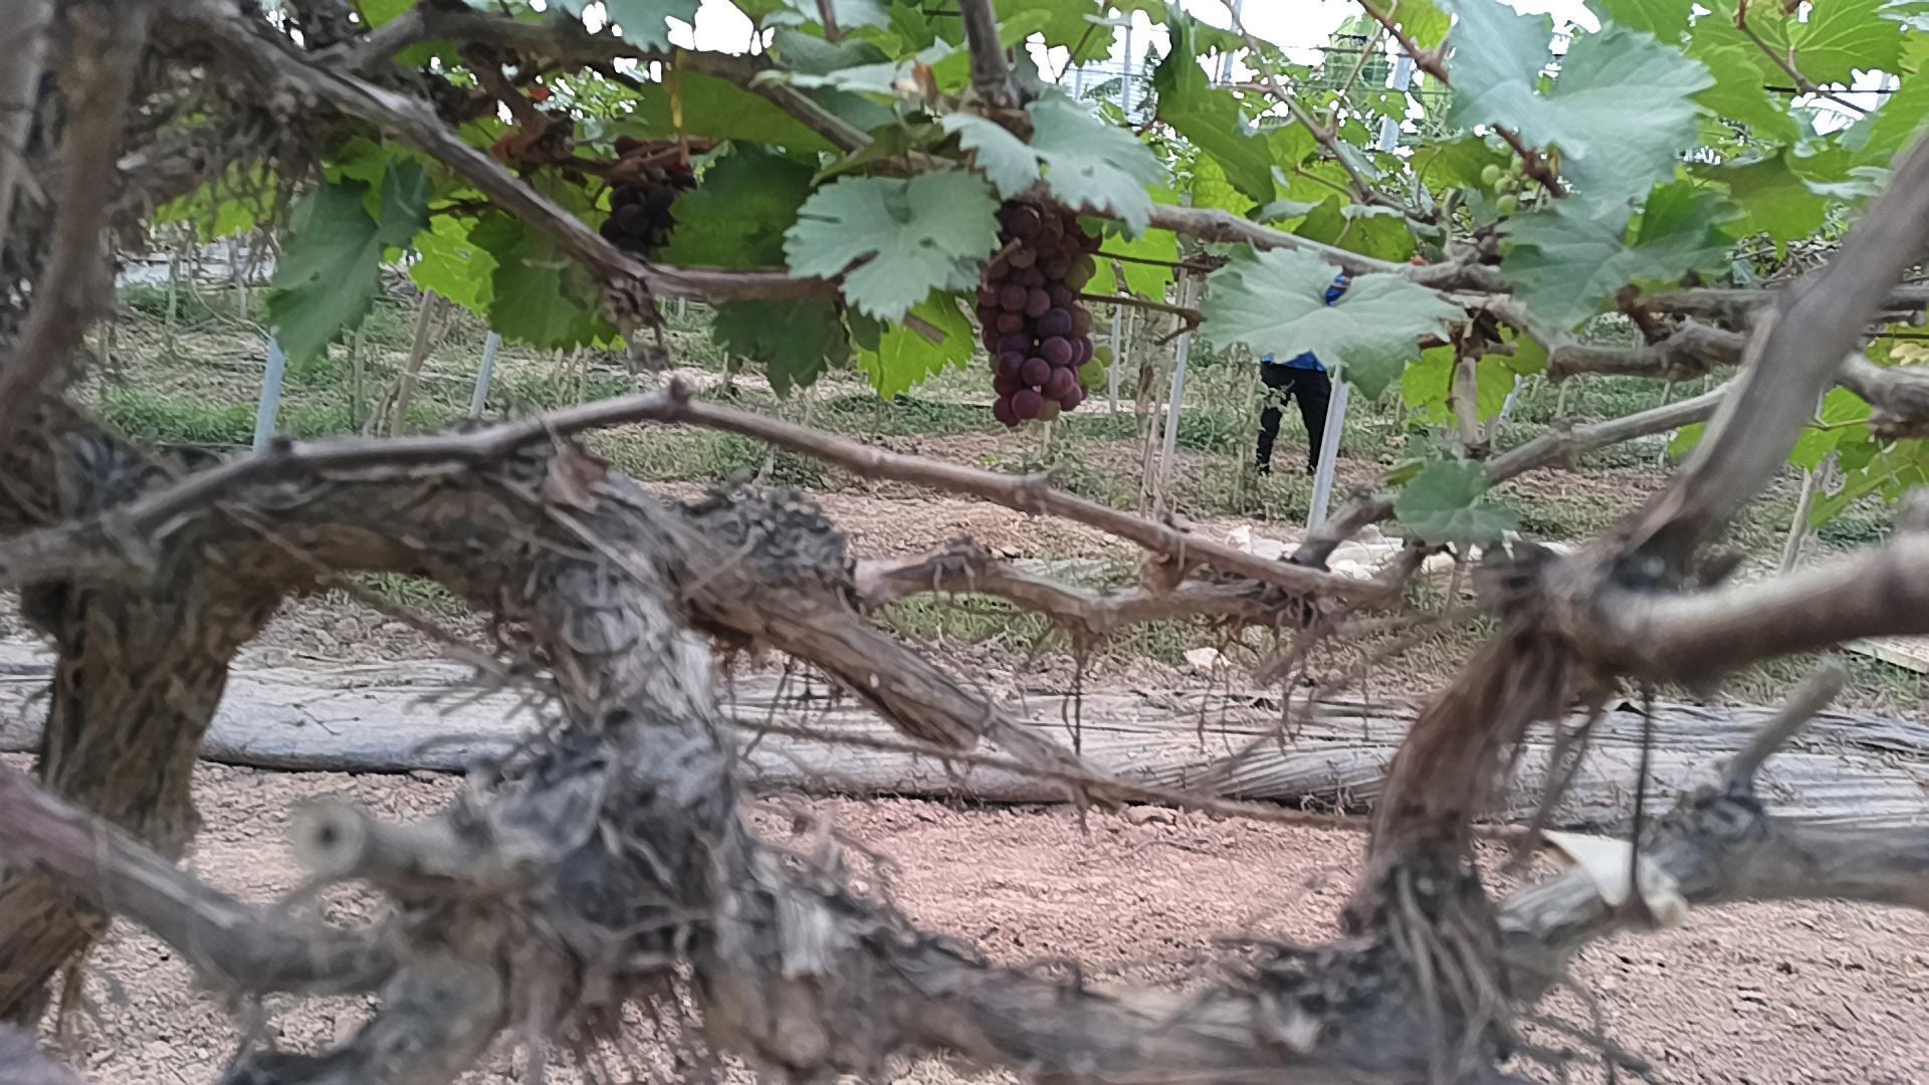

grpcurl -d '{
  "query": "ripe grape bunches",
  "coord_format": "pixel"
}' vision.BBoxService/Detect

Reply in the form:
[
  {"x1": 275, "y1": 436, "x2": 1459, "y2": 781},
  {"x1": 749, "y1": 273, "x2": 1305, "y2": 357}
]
[
  {"x1": 976, "y1": 200, "x2": 1100, "y2": 426},
  {"x1": 601, "y1": 171, "x2": 696, "y2": 255}
]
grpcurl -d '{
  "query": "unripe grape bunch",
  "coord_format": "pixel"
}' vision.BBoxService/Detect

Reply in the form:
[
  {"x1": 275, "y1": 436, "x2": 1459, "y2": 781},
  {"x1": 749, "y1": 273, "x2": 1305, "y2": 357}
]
[{"x1": 1480, "y1": 157, "x2": 1527, "y2": 215}]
